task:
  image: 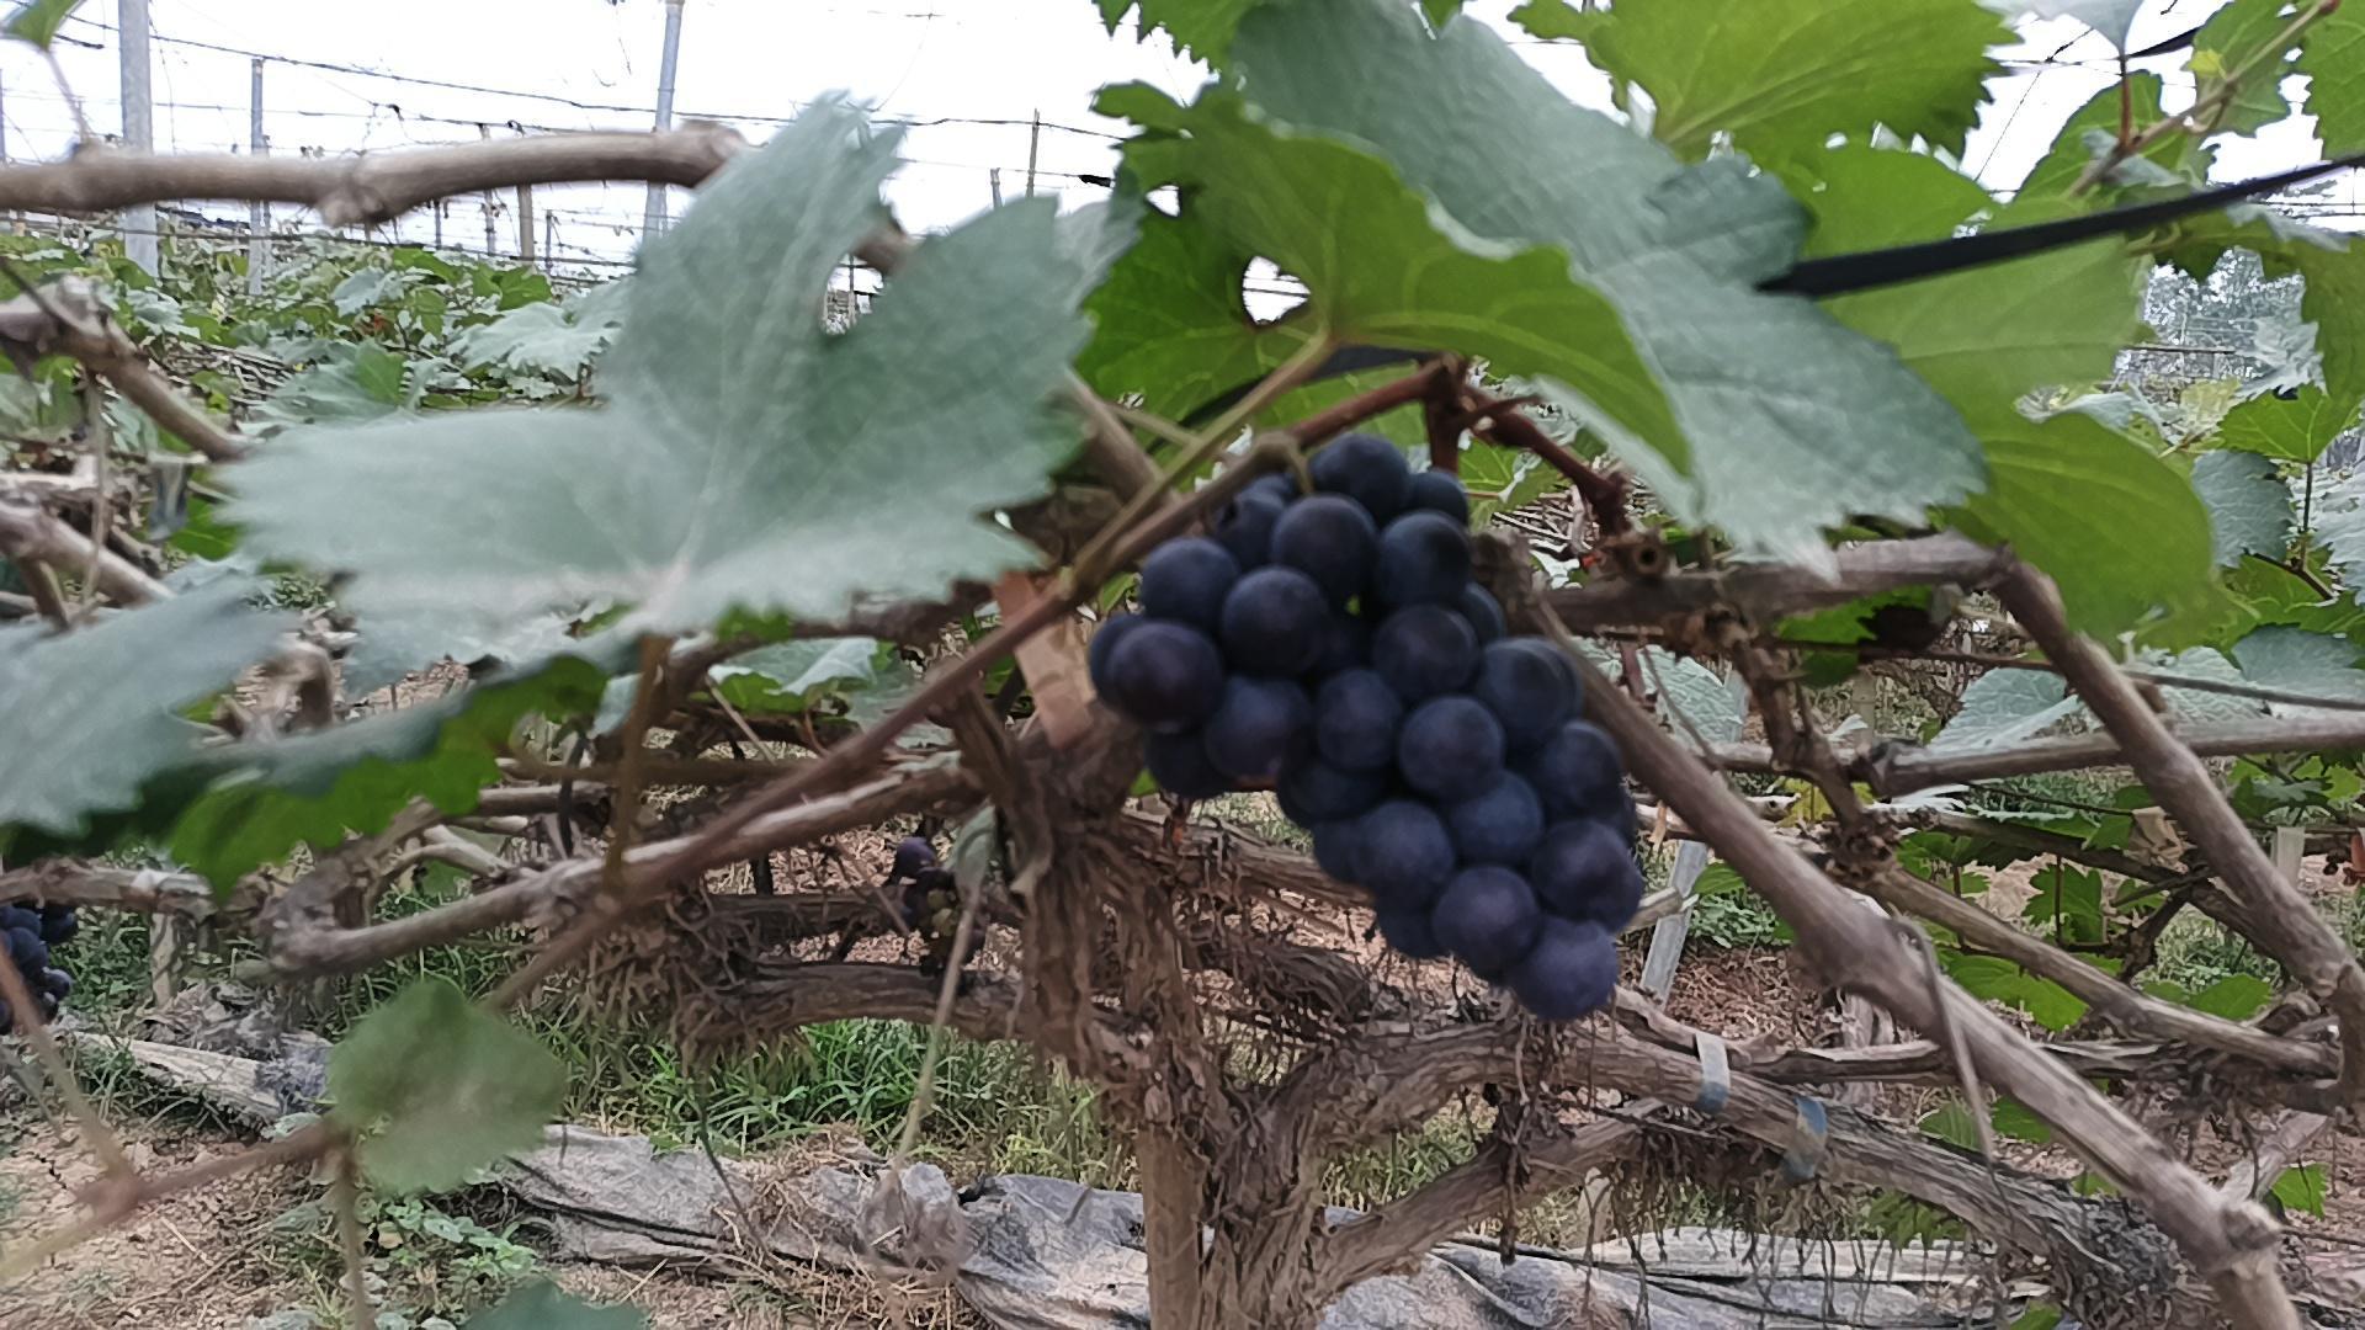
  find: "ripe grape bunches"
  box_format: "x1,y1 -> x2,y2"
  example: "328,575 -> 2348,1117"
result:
882,835 -> 984,1001
1090,436 -> 1643,1020
0,900 -> 74,1033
